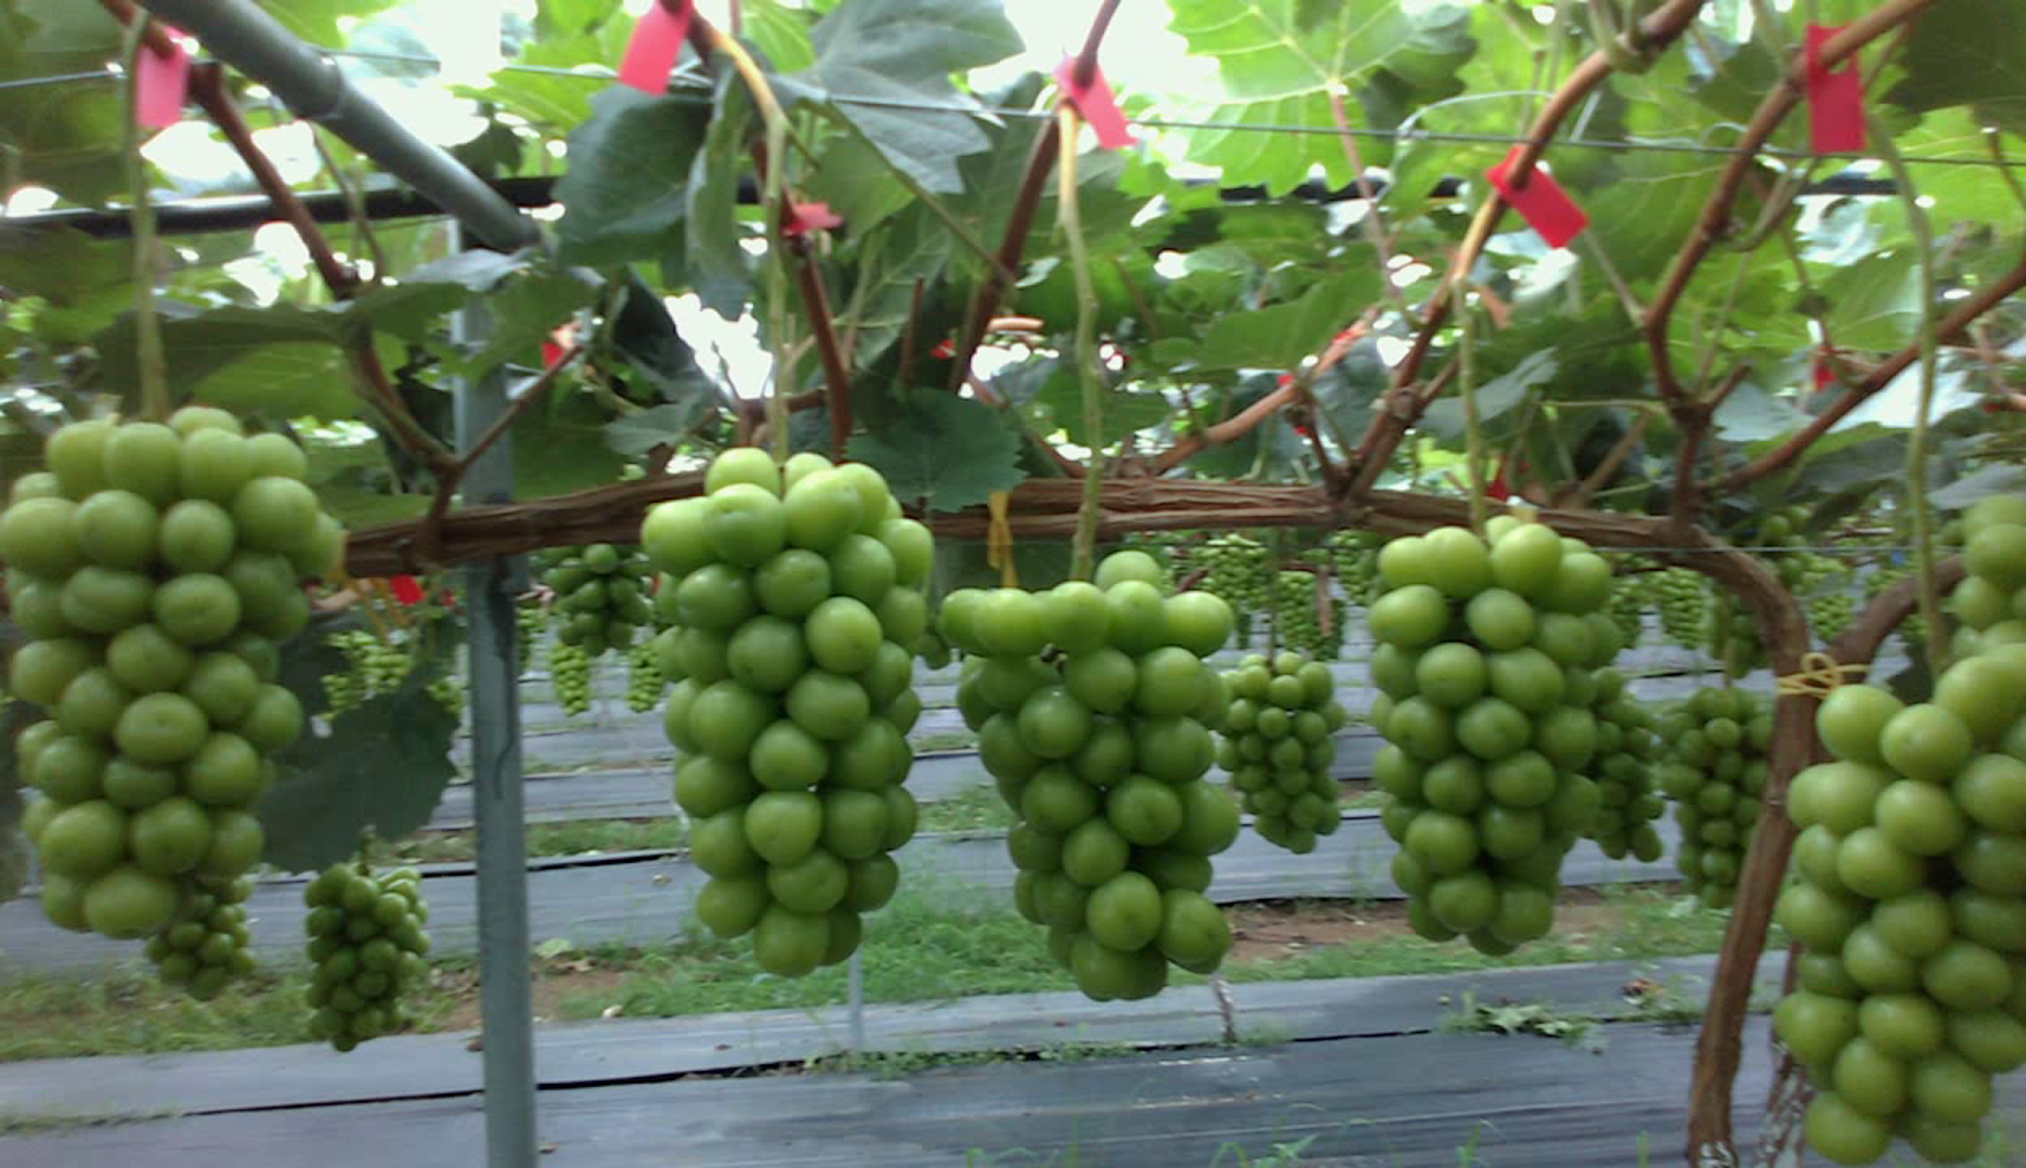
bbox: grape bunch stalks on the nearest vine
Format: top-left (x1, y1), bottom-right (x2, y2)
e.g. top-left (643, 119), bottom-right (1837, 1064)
top-left (1455, 200), bottom-right (1497, 530)
top-left (709, 32), bottom-right (787, 466)
top-left (1869, 115), bottom-right (1950, 680)
top-left (1060, 107), bottom-right (1104, 579)
top-left (119, 8), bottom-right (169, 420)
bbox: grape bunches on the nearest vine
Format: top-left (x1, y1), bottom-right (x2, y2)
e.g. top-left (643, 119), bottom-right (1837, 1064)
top-left (1771, 646), bottom-right (2024, 1162)
top-left (935, 550), bottom-right (1239, 1004)
top-left (1370, 516), bottom-right (1625, 957)
top-left (644, 448), bottom-right (933, 977)
top-left (0, 407), bottom-right (346, 936)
